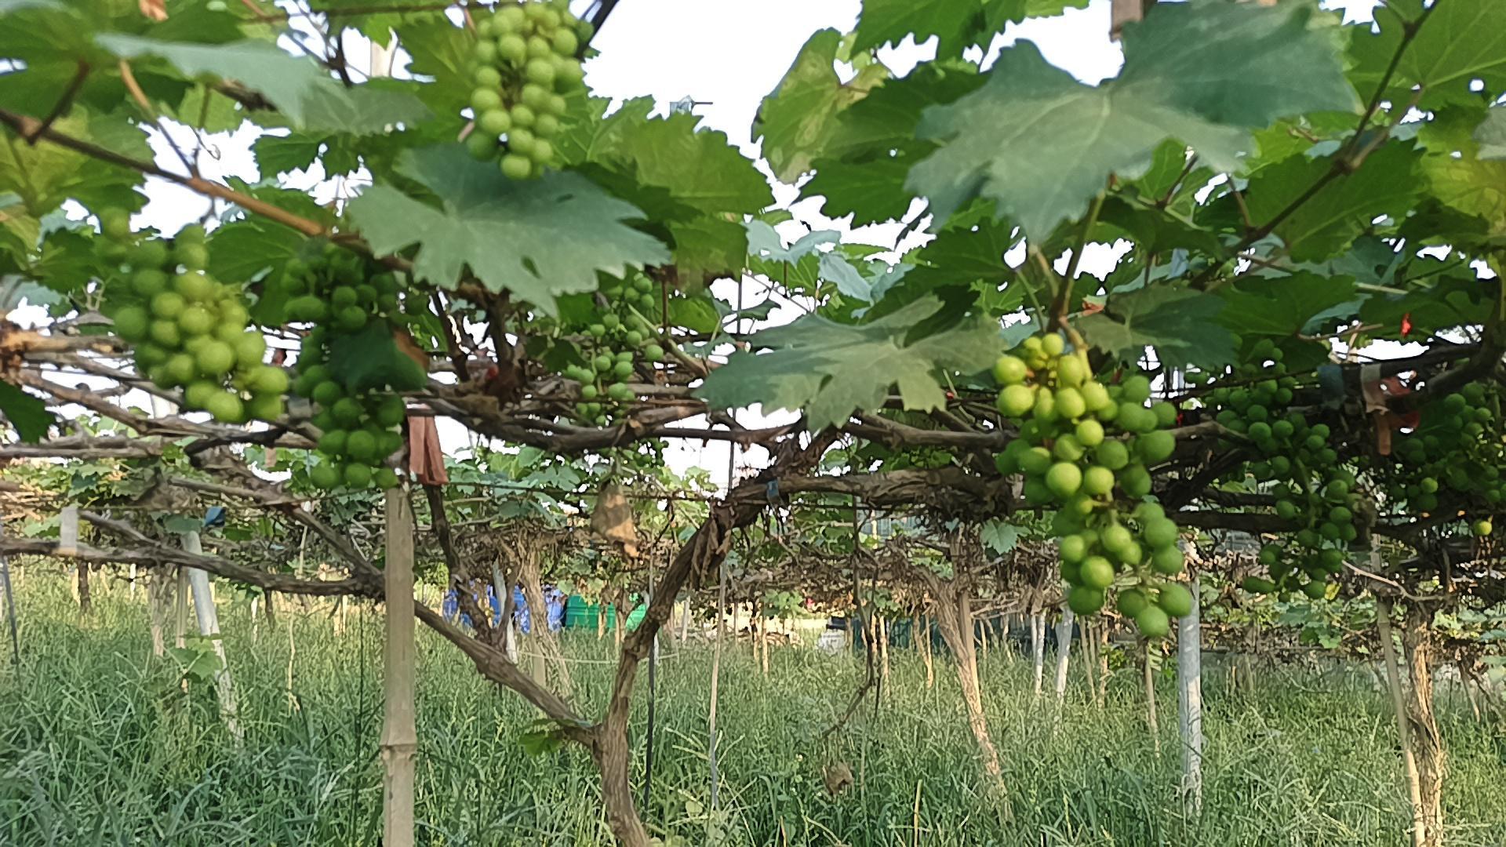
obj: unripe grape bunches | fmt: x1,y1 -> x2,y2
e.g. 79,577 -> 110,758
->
561,273 -> 664,422
1389,383 -> 1505,529
460,0 -> 591,179
617,438 -> 675,474
282,247 -> 429,488
1206,377 -> 1374,595
102,225 -> 289,423
992,333 -> 1191,637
